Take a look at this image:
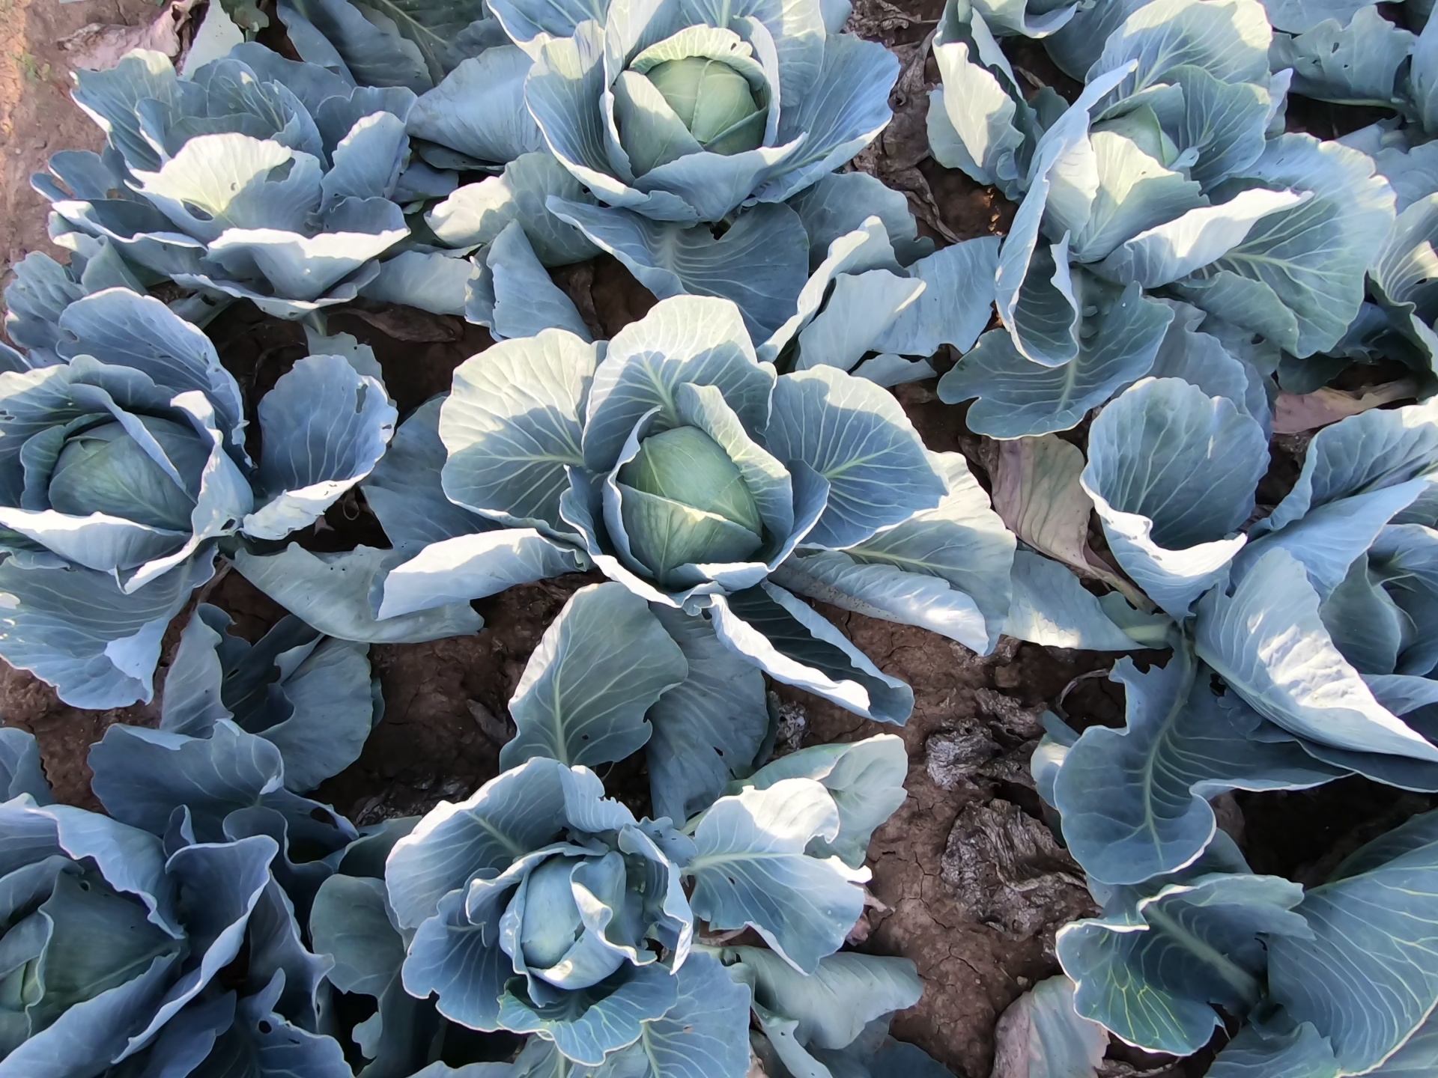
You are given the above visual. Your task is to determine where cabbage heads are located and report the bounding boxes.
[1081,116,1190,234]
[1290,565,1402,670]
[509,853,619,976]
[613,422,762,573]
[43,414,204,532]
[621,49,764,195]
[1,903,160,1068]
